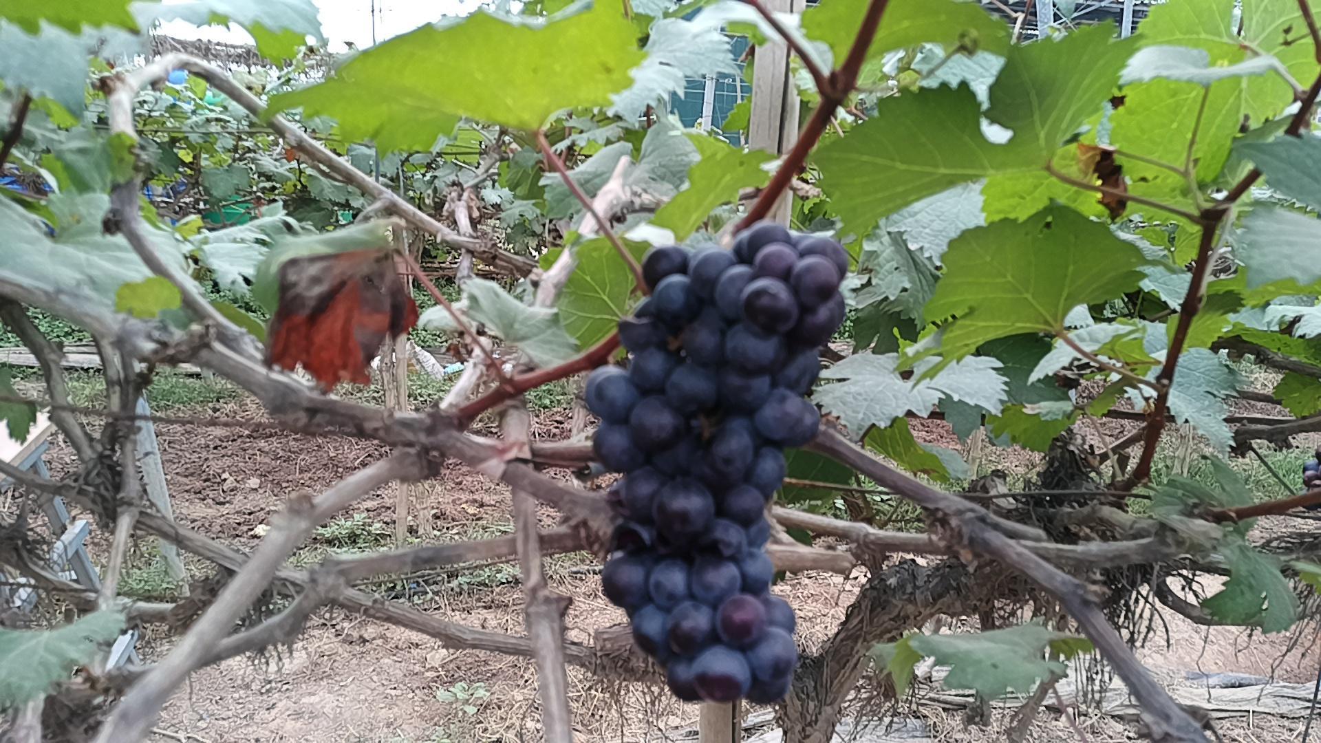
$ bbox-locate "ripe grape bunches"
[585,224,848,703]
[1299,442,1320,513]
